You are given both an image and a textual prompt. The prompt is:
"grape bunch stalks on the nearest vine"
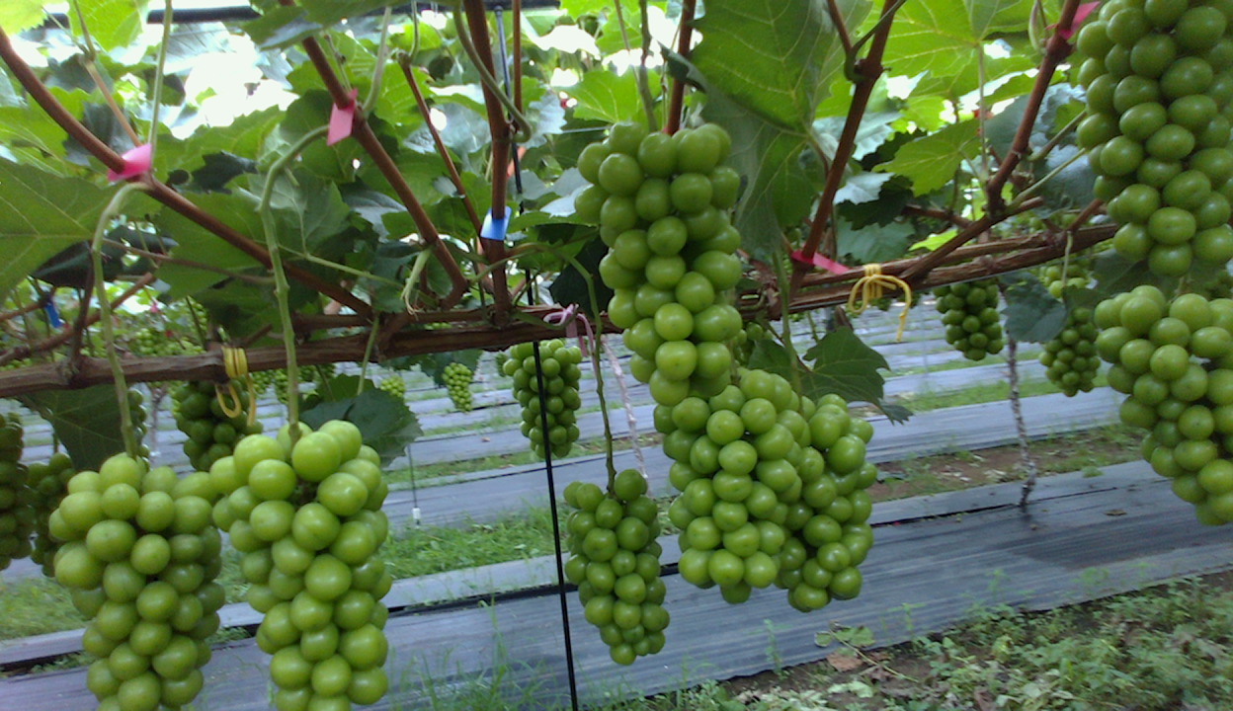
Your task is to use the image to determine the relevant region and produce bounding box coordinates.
[255,127,328,444]
[1179,276,1190,295]
[513,243,616,498]
[772,253,803,412]
[638,2,659,128]
[728,342,740,385]
[92,182,135,460]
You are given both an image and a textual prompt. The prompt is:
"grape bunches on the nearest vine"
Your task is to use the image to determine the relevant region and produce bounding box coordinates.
[59,453,223,710]
[563,469,668,665]
[776,393,878,612]
[652,369,807,606]
[1076,0,1232,277]
[1093,283,1232,526]
[573,119,745,407]
[207,422,391,710]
